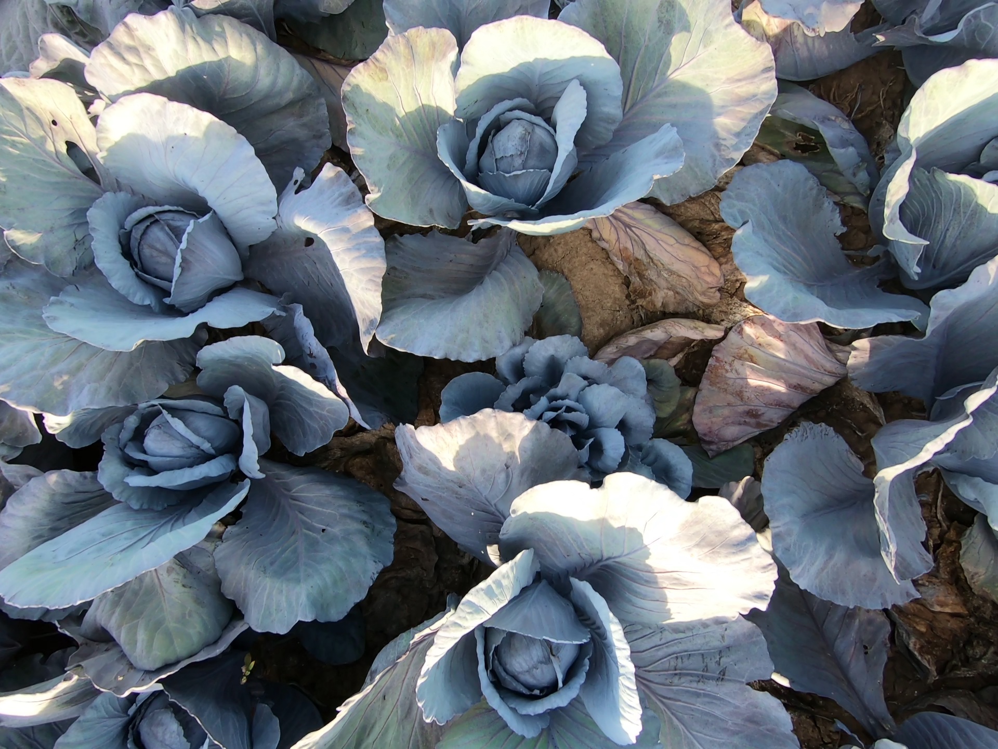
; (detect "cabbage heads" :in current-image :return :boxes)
[142,406,229,471]
[139,680,237,748]
[485,118,562,202]
[491,591,580,693]
[128,211,230,289]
